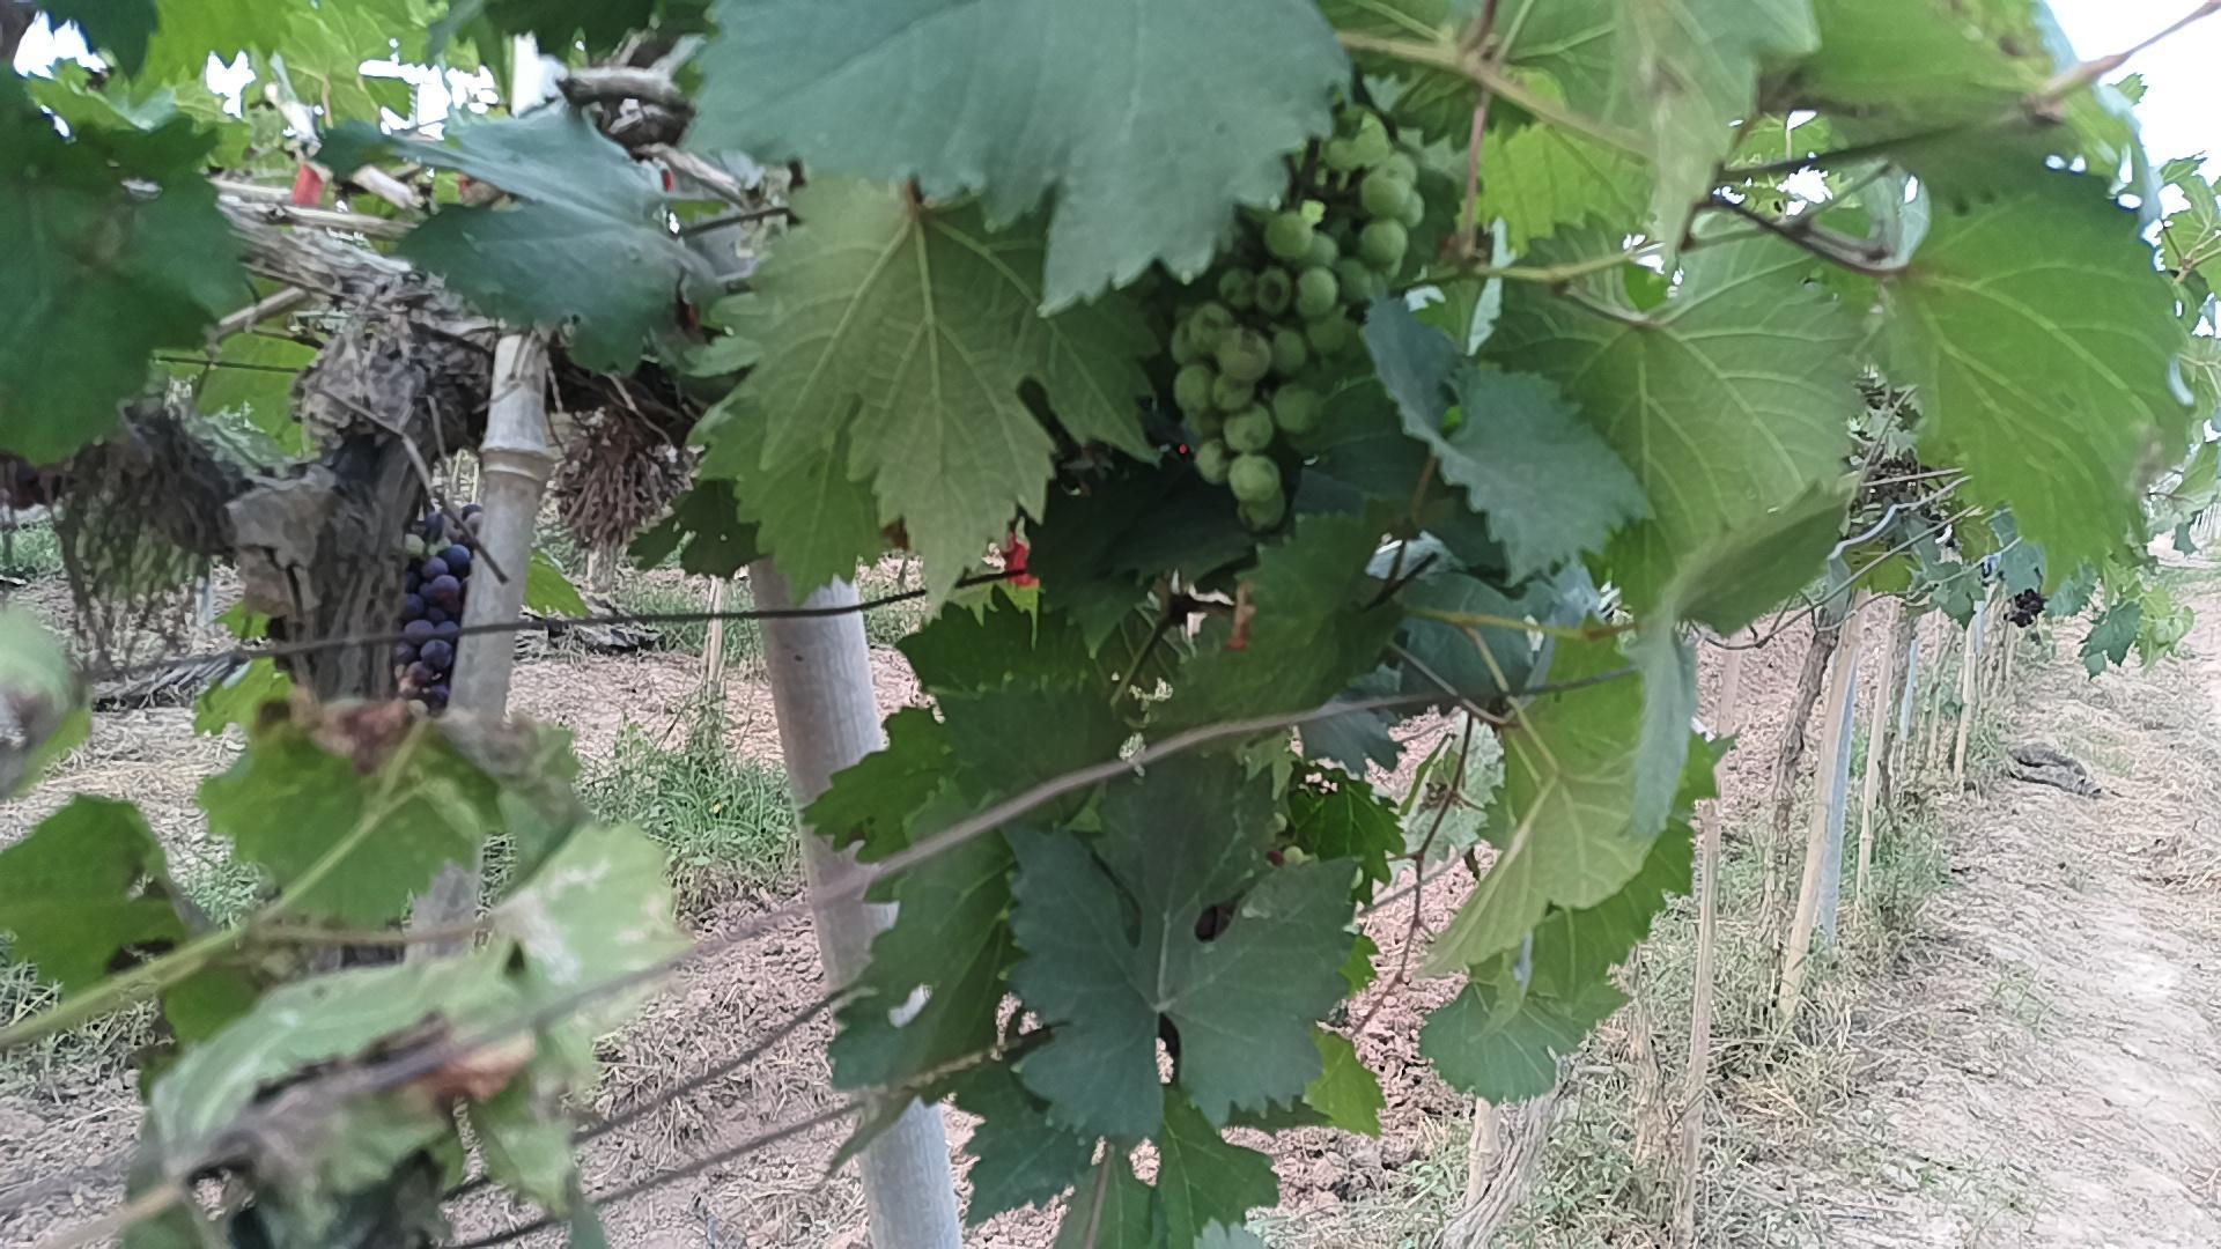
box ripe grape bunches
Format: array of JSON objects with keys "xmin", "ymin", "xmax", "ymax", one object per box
[
  {"xmin": 2005, "ymin": 587, "xmax": 2049, "ymax": 628},
  {"xmin": 393, "ymin": 504, "xmax": 480, "ymax": 711}
]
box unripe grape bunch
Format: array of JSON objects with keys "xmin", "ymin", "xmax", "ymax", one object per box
[{"xmin": 1171, "ymin": 94, "xmax": 1431, "ymax": 534}]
